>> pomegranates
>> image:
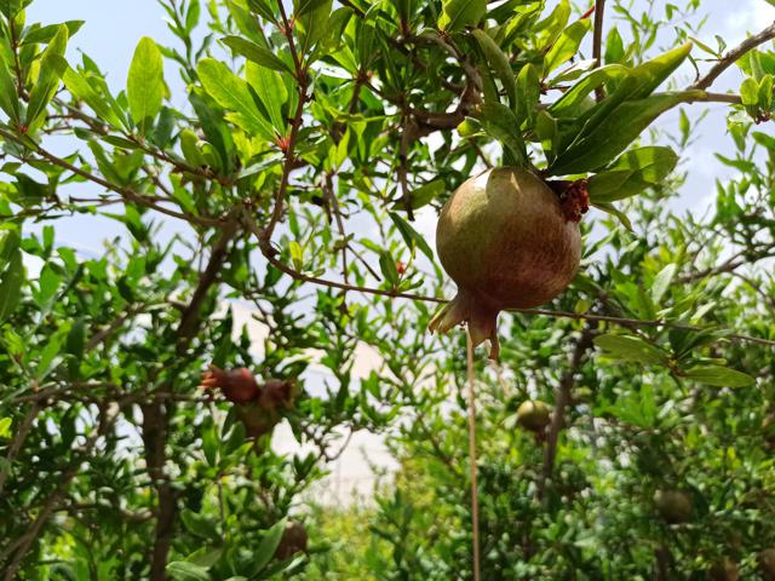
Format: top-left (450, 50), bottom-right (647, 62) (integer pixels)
top-left (199, 362), bottom-right (262, 403)
top-left (517, 399), bottom-right (551, 443)
top-left (708, 559), bottom-right (739, 581)
top-left (275, 520), bottom-right (308, 562)
top-left (259, 381), bottom-right (291, 409)
top-left (235, 392), bottom-right (285, 438)
top-left (427, 165), bottom-right (581, 361)
top-left (758, 548), bottom-right (775, 577)
top-left (654, 489), bottom-right (693, 525)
